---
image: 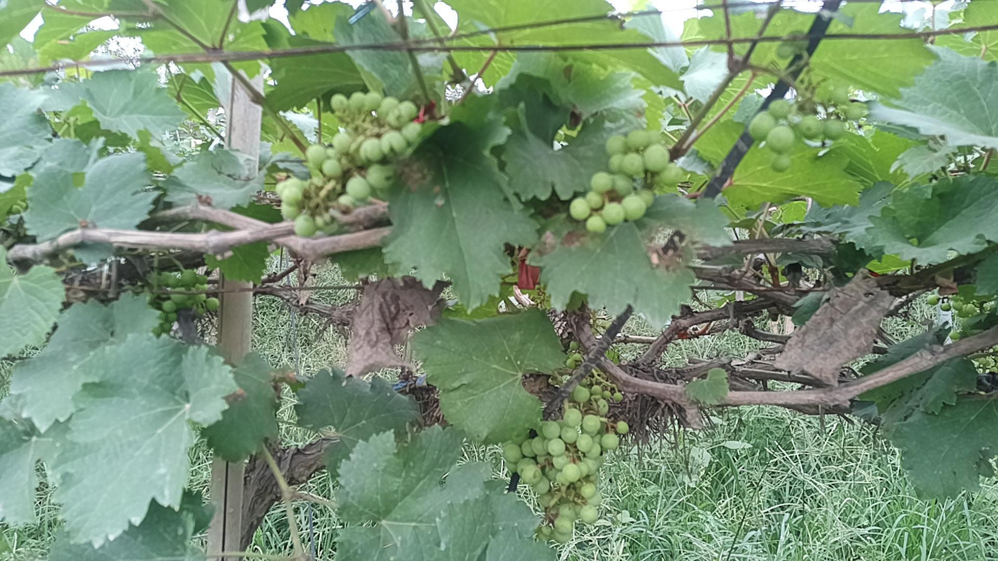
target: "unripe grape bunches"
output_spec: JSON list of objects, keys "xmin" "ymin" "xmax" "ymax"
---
[
  {"xmin": 746, "ymin": 30, "xmax": 862, "ymax": 171},
  {"xmin": 926, "ymin": 295, "xmax": 997, "ymax": 373},
  {"xmin": 569, "ymin": 130, "xmax": 686, "ymax": 233},
  {"xmin": 503, "ymin": 341, "xmax": 628, "ymax": 542},
  {"xmin": 150, "ymin": 270, "xmax": 218, "ymax": 334},
  {"xmin": 277, "ymin": 90, "xmax": 422, "ymax": 236}
]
